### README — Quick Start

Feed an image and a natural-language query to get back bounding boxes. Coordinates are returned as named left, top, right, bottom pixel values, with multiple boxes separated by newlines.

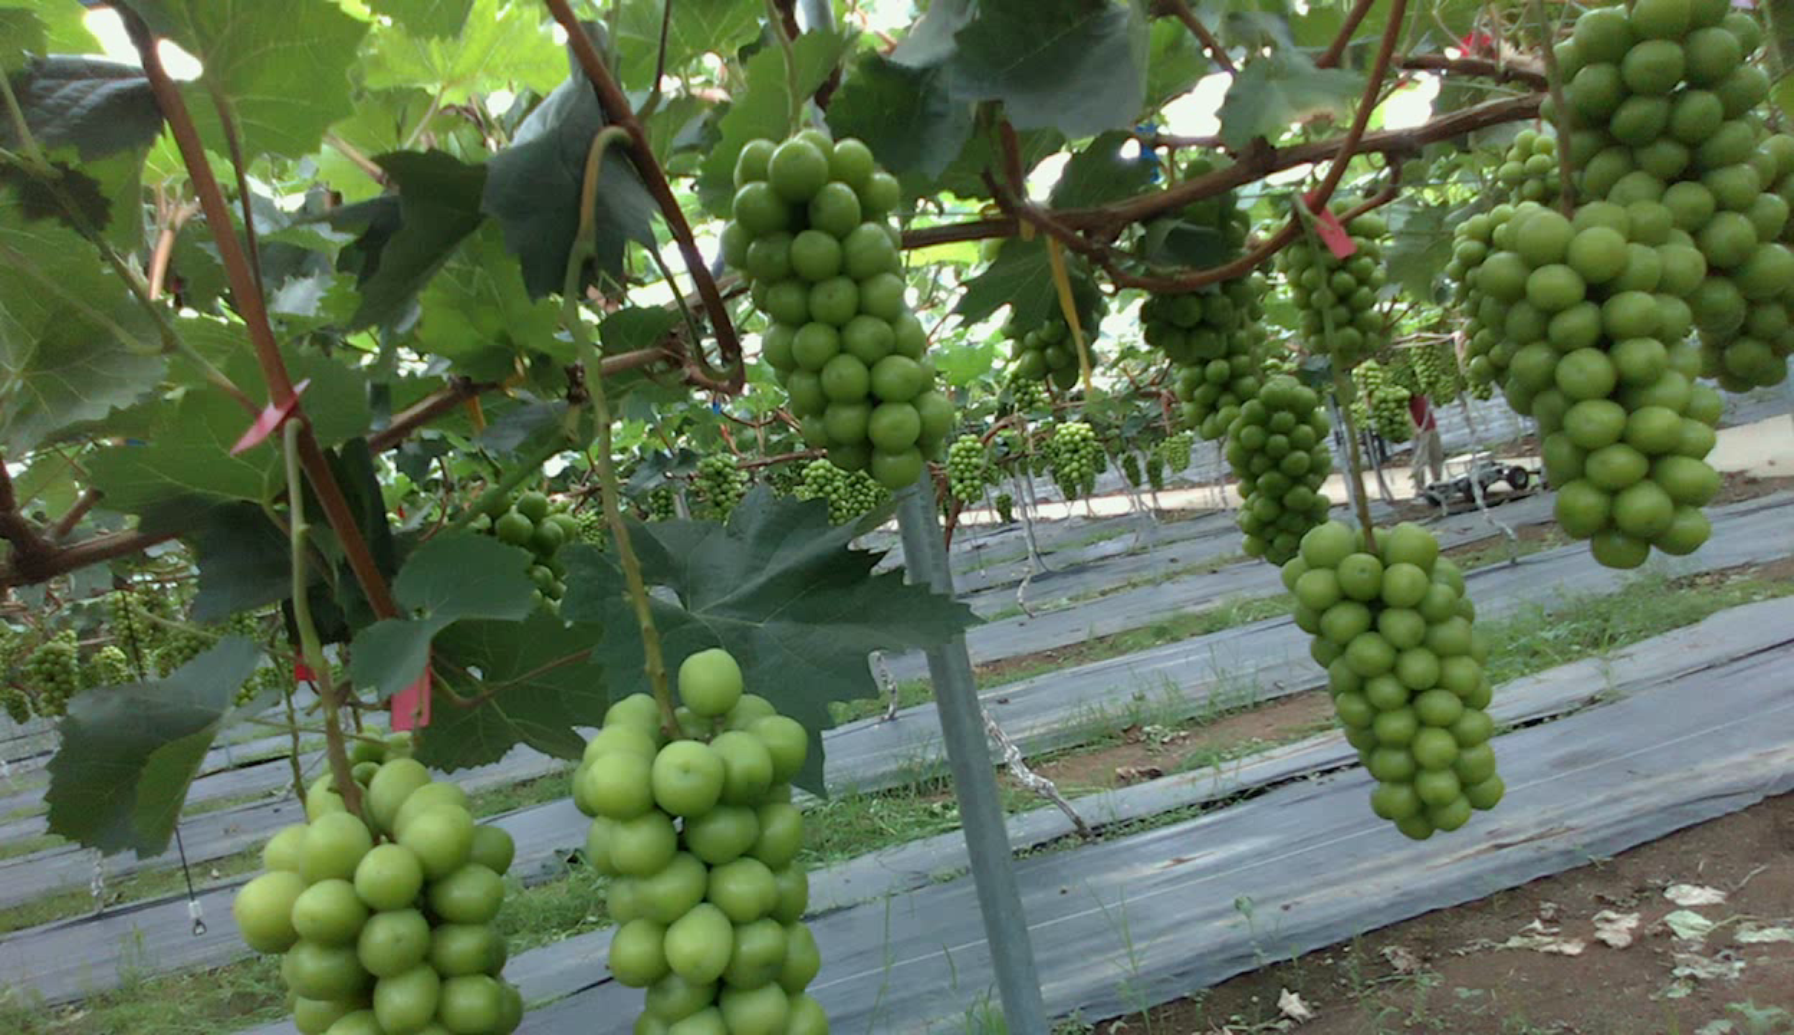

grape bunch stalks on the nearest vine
left=762, top=0, right=805, bottom=132
left=1292, top=194, right=1376, bottom=548
left=282, top=421, right=359, bottom=811
left=561, top=125, right=686, bottom=737
left=1525, top=0, right=1574, bottom=213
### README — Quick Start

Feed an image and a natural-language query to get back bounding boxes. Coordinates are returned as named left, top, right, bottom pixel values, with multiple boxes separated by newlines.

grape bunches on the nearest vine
left=227, top=755, right=525, bottom=1034
left=719, top=131, right=954, bottom=490
left=1558, top=1, right=1793, bottom=395
left=1281, top=522, right=1502, bottom=841
left=1479, top=198, right=1724, bottom=574
left=571, top=647, right=829, bottom=1034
